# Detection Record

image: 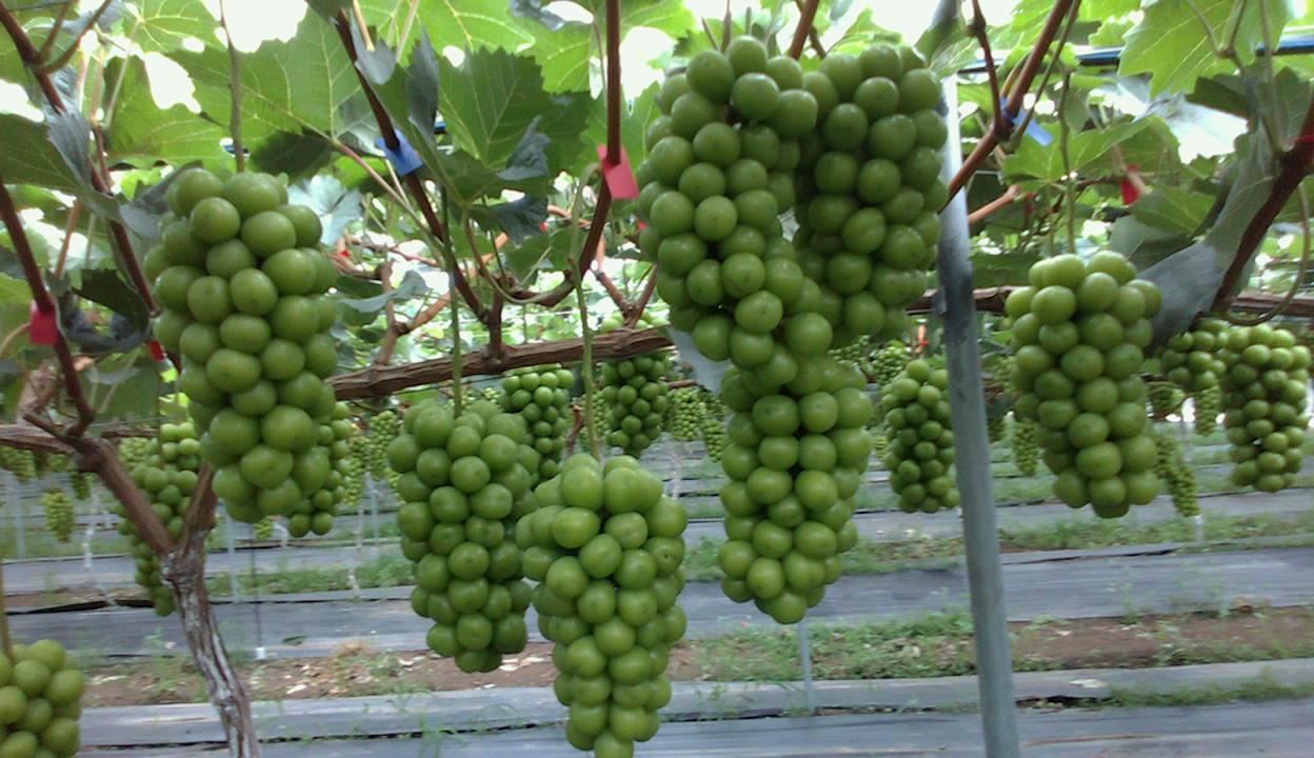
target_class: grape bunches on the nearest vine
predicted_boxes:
[791,42,950,352]
[634,35,834,386]
[717,355,873,623]
[1219,323,1312,492]
[1004,250,1162,519]
[0,640,84,755]
[387,397,541,674]
[514,453,688,757]
[143,168,338,523]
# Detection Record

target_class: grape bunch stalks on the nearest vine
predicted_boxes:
[1056,60,1077,257]
[222,24,245,171]
[441,187,462,417]
[568,160,604,461]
